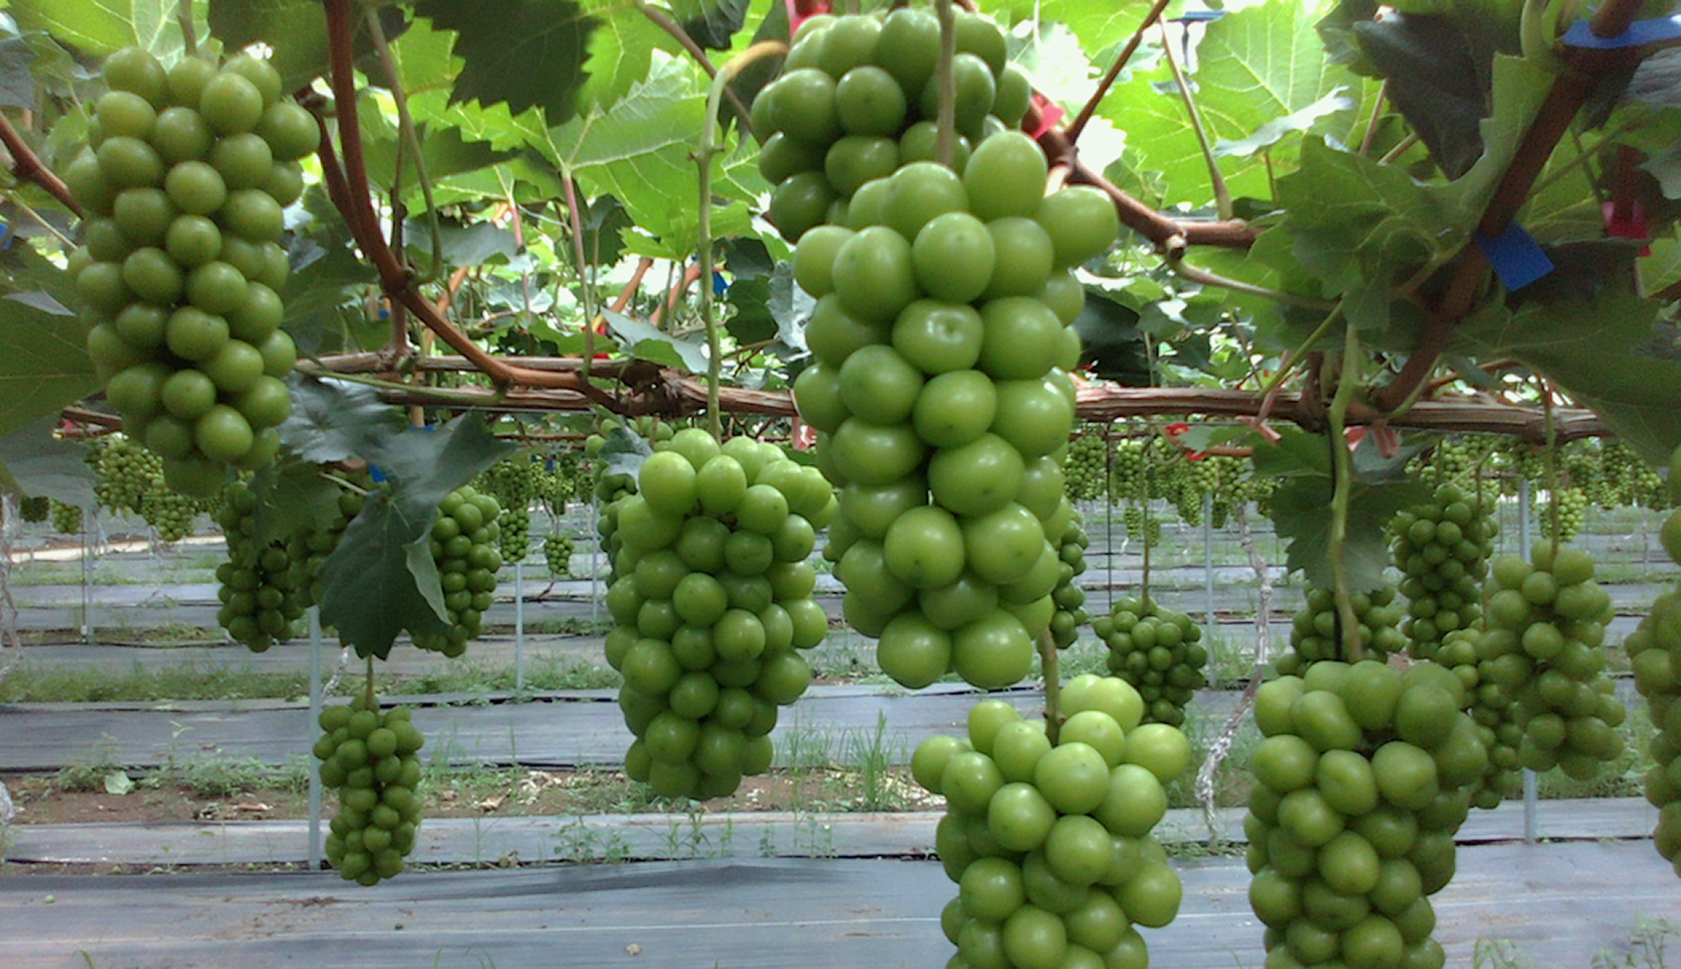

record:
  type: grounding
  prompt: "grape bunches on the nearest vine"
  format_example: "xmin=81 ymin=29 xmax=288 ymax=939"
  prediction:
xmin=1624 ymin=447 xmax=1680 ymax=875
xmin=749 ymin=3 xmax=1033 ymax=245
xmin=795 ymin=125 xmax=1119 ymax=689
xmin=63 ymin=47 xmax=321 ymax=502
xmin=909 ymin=676 xmax=1193 ymax=968
xmin=605 ymin=428 xmax=838 ymax=802
xmin=1242 ymin=659 xmax=1487 ymax=968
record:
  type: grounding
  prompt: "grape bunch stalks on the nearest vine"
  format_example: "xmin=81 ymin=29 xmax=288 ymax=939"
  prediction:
xmin=179 ymin=1 xmax=199 ymax=57
xmin=933 ymin=1 xmax=956 ymax=166
xmin=1037 ymin=633 xmax=1061 ymax=747
xmin=1331 ymin=324 xmax=1362 ymax=663
xmin=699 ymin=40 xmax=791 ymax=445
